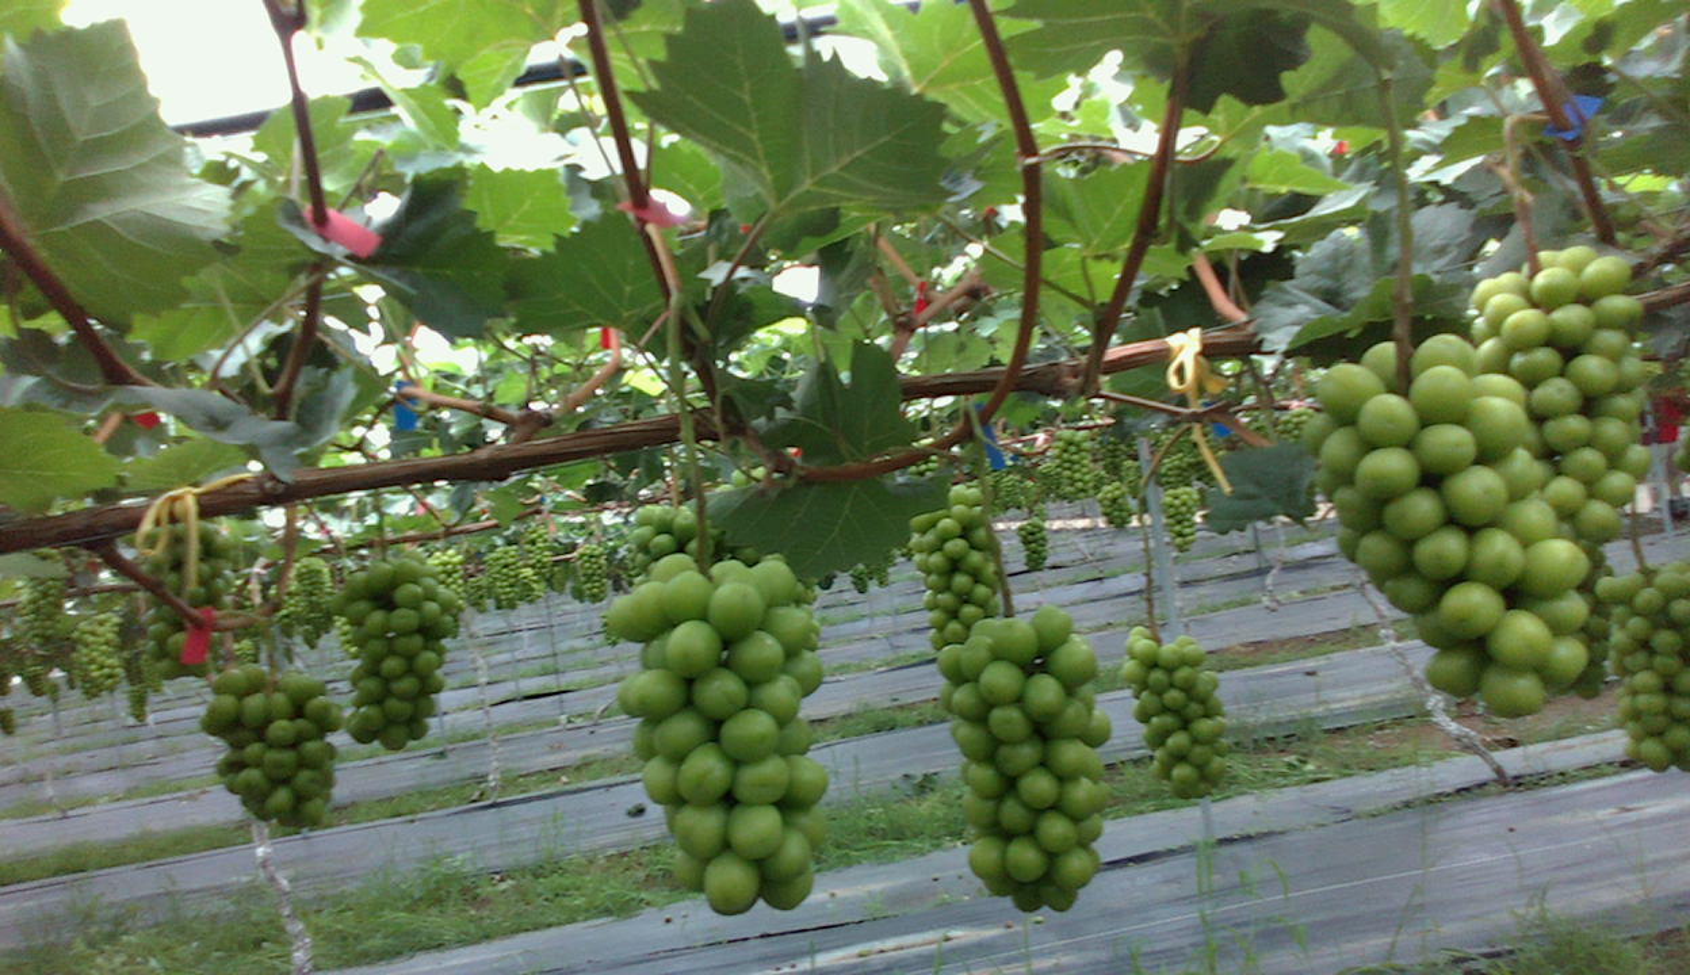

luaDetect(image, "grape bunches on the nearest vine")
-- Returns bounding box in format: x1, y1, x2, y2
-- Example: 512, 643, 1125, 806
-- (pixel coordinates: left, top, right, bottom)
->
1473, 242, 1651, 550
938, 604, 1112, 915
1309, 334, 1587, 718
605, 555, 830, 919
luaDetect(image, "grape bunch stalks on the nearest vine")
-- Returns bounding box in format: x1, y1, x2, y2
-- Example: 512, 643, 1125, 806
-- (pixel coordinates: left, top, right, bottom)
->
1500, 114, 1545, 275
1380, 81, 1411, 398
971, 441, 1014, 617
666, 299, 710, 576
